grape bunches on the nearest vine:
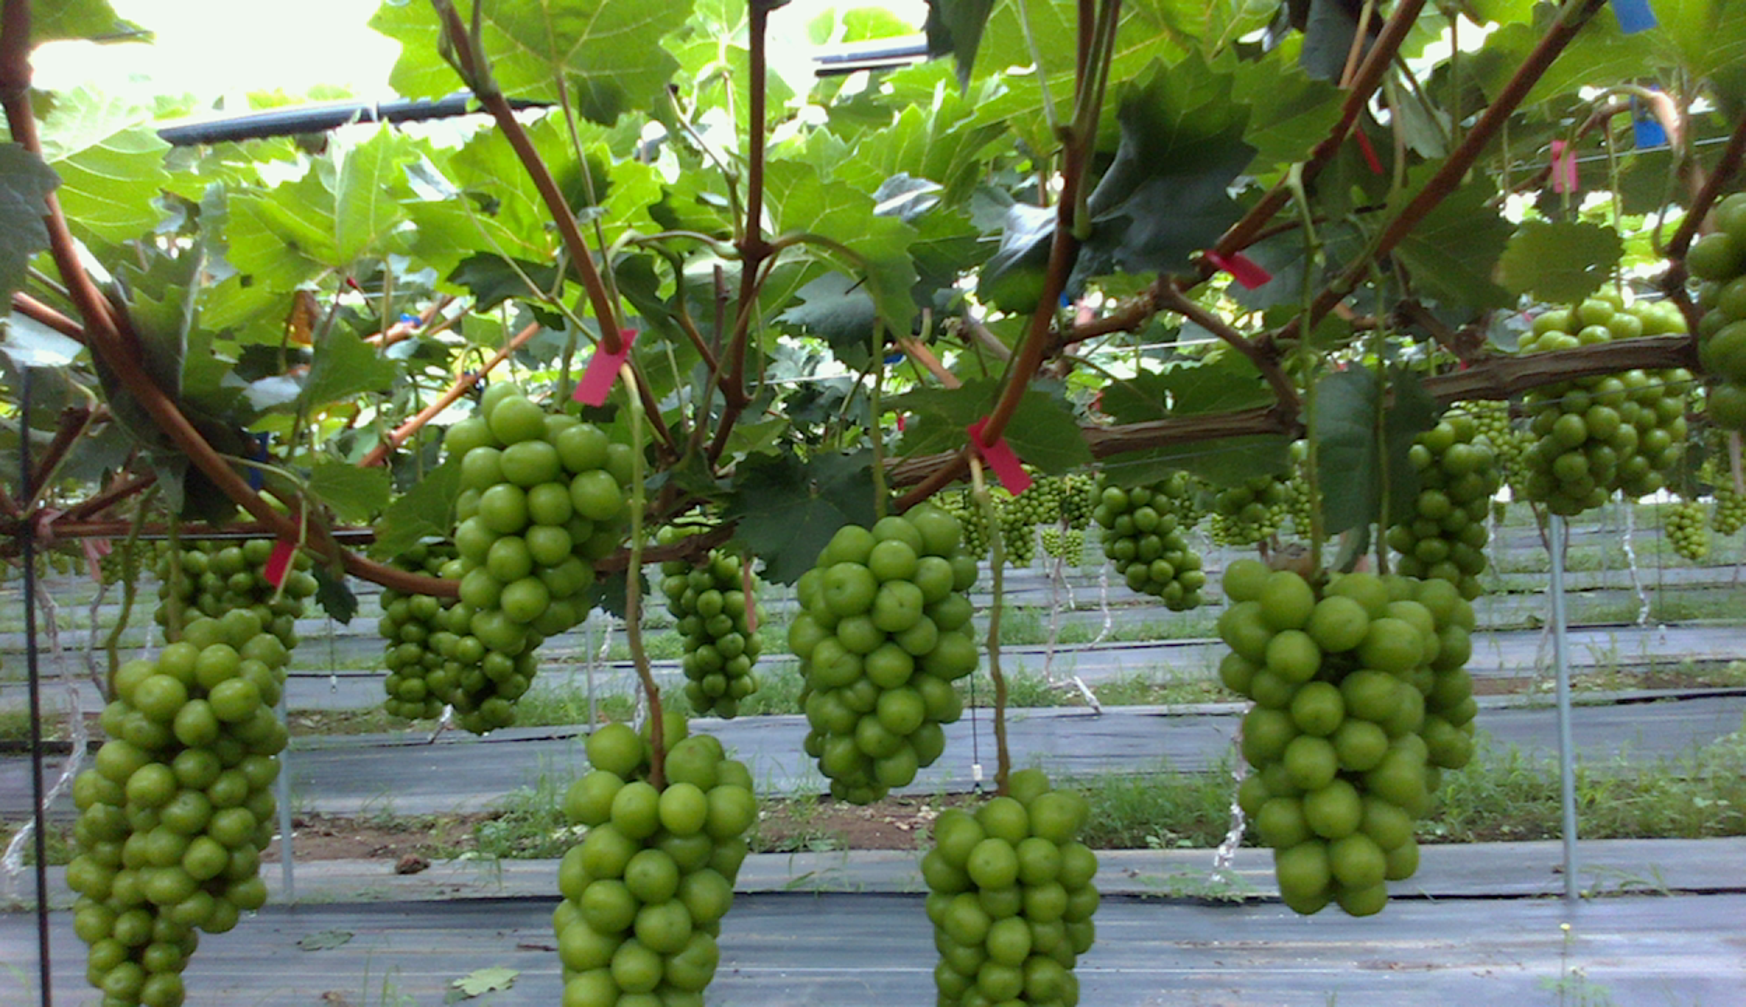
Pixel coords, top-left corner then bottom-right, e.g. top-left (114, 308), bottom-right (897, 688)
top-left (551, 710), bottom-right (760, 1006)
top-left (67, 768), bottom-right (197, 1006)
top-left (1379, 572), bottom-right (1477, 796)
top-left (1216, 547), bottom-right (1441, 916)
top-left (918, 768), bottom-right (1101, 1006)
top-left (1686, 192), bottom-right (1745, 431)
top-left (788, 503), bottom-right (979, 787)
top-left (94, 608), bottom-right (292, 937)
top-left (443, 379), bottom-right (632, 657)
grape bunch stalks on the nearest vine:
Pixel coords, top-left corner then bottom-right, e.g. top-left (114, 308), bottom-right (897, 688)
top-left (1368, 263), bottom-right (1391, 578)
top-left (106, 481), bottom-right (162, 704)
top-left (1287, 162), bottom-right (1322, 579)
top-left (168, 508), bottom-right (180, 643)
top-left (760, 232), bottom-right (888, 522)
top-left (970, 462), bottom-right (1009, 796)
top-left (618, 362), bottom-right (663, 792)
